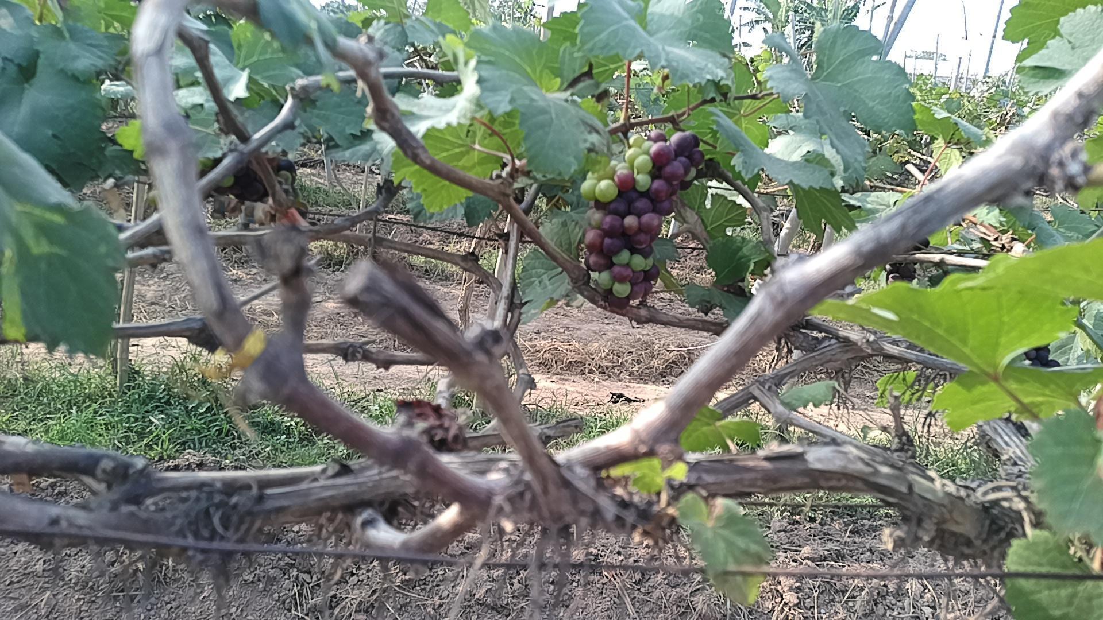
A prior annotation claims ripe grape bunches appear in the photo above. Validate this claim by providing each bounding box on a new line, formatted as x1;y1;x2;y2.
884;236;930;285
1024;346;1061;368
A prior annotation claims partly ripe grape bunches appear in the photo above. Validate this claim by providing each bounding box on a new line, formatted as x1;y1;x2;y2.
580;131;704;309
198;154;297;202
